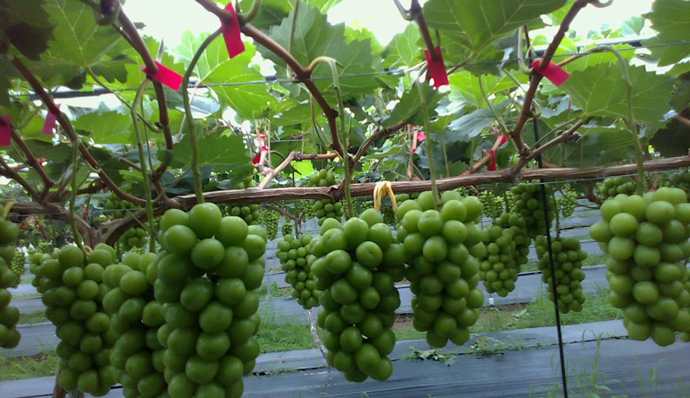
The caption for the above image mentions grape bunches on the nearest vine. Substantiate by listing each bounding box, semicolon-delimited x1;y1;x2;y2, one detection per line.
103;253;168;397
39;243;118;397
589;187;688;347
396;190;484;348
154;202;266;397
308;208;405;383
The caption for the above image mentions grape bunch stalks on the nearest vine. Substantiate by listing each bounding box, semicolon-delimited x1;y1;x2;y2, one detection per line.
415;62;440;210
59;112;88;265
581;45;644;195
305;56;354;216
130;78;155;252
182;27;223;203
